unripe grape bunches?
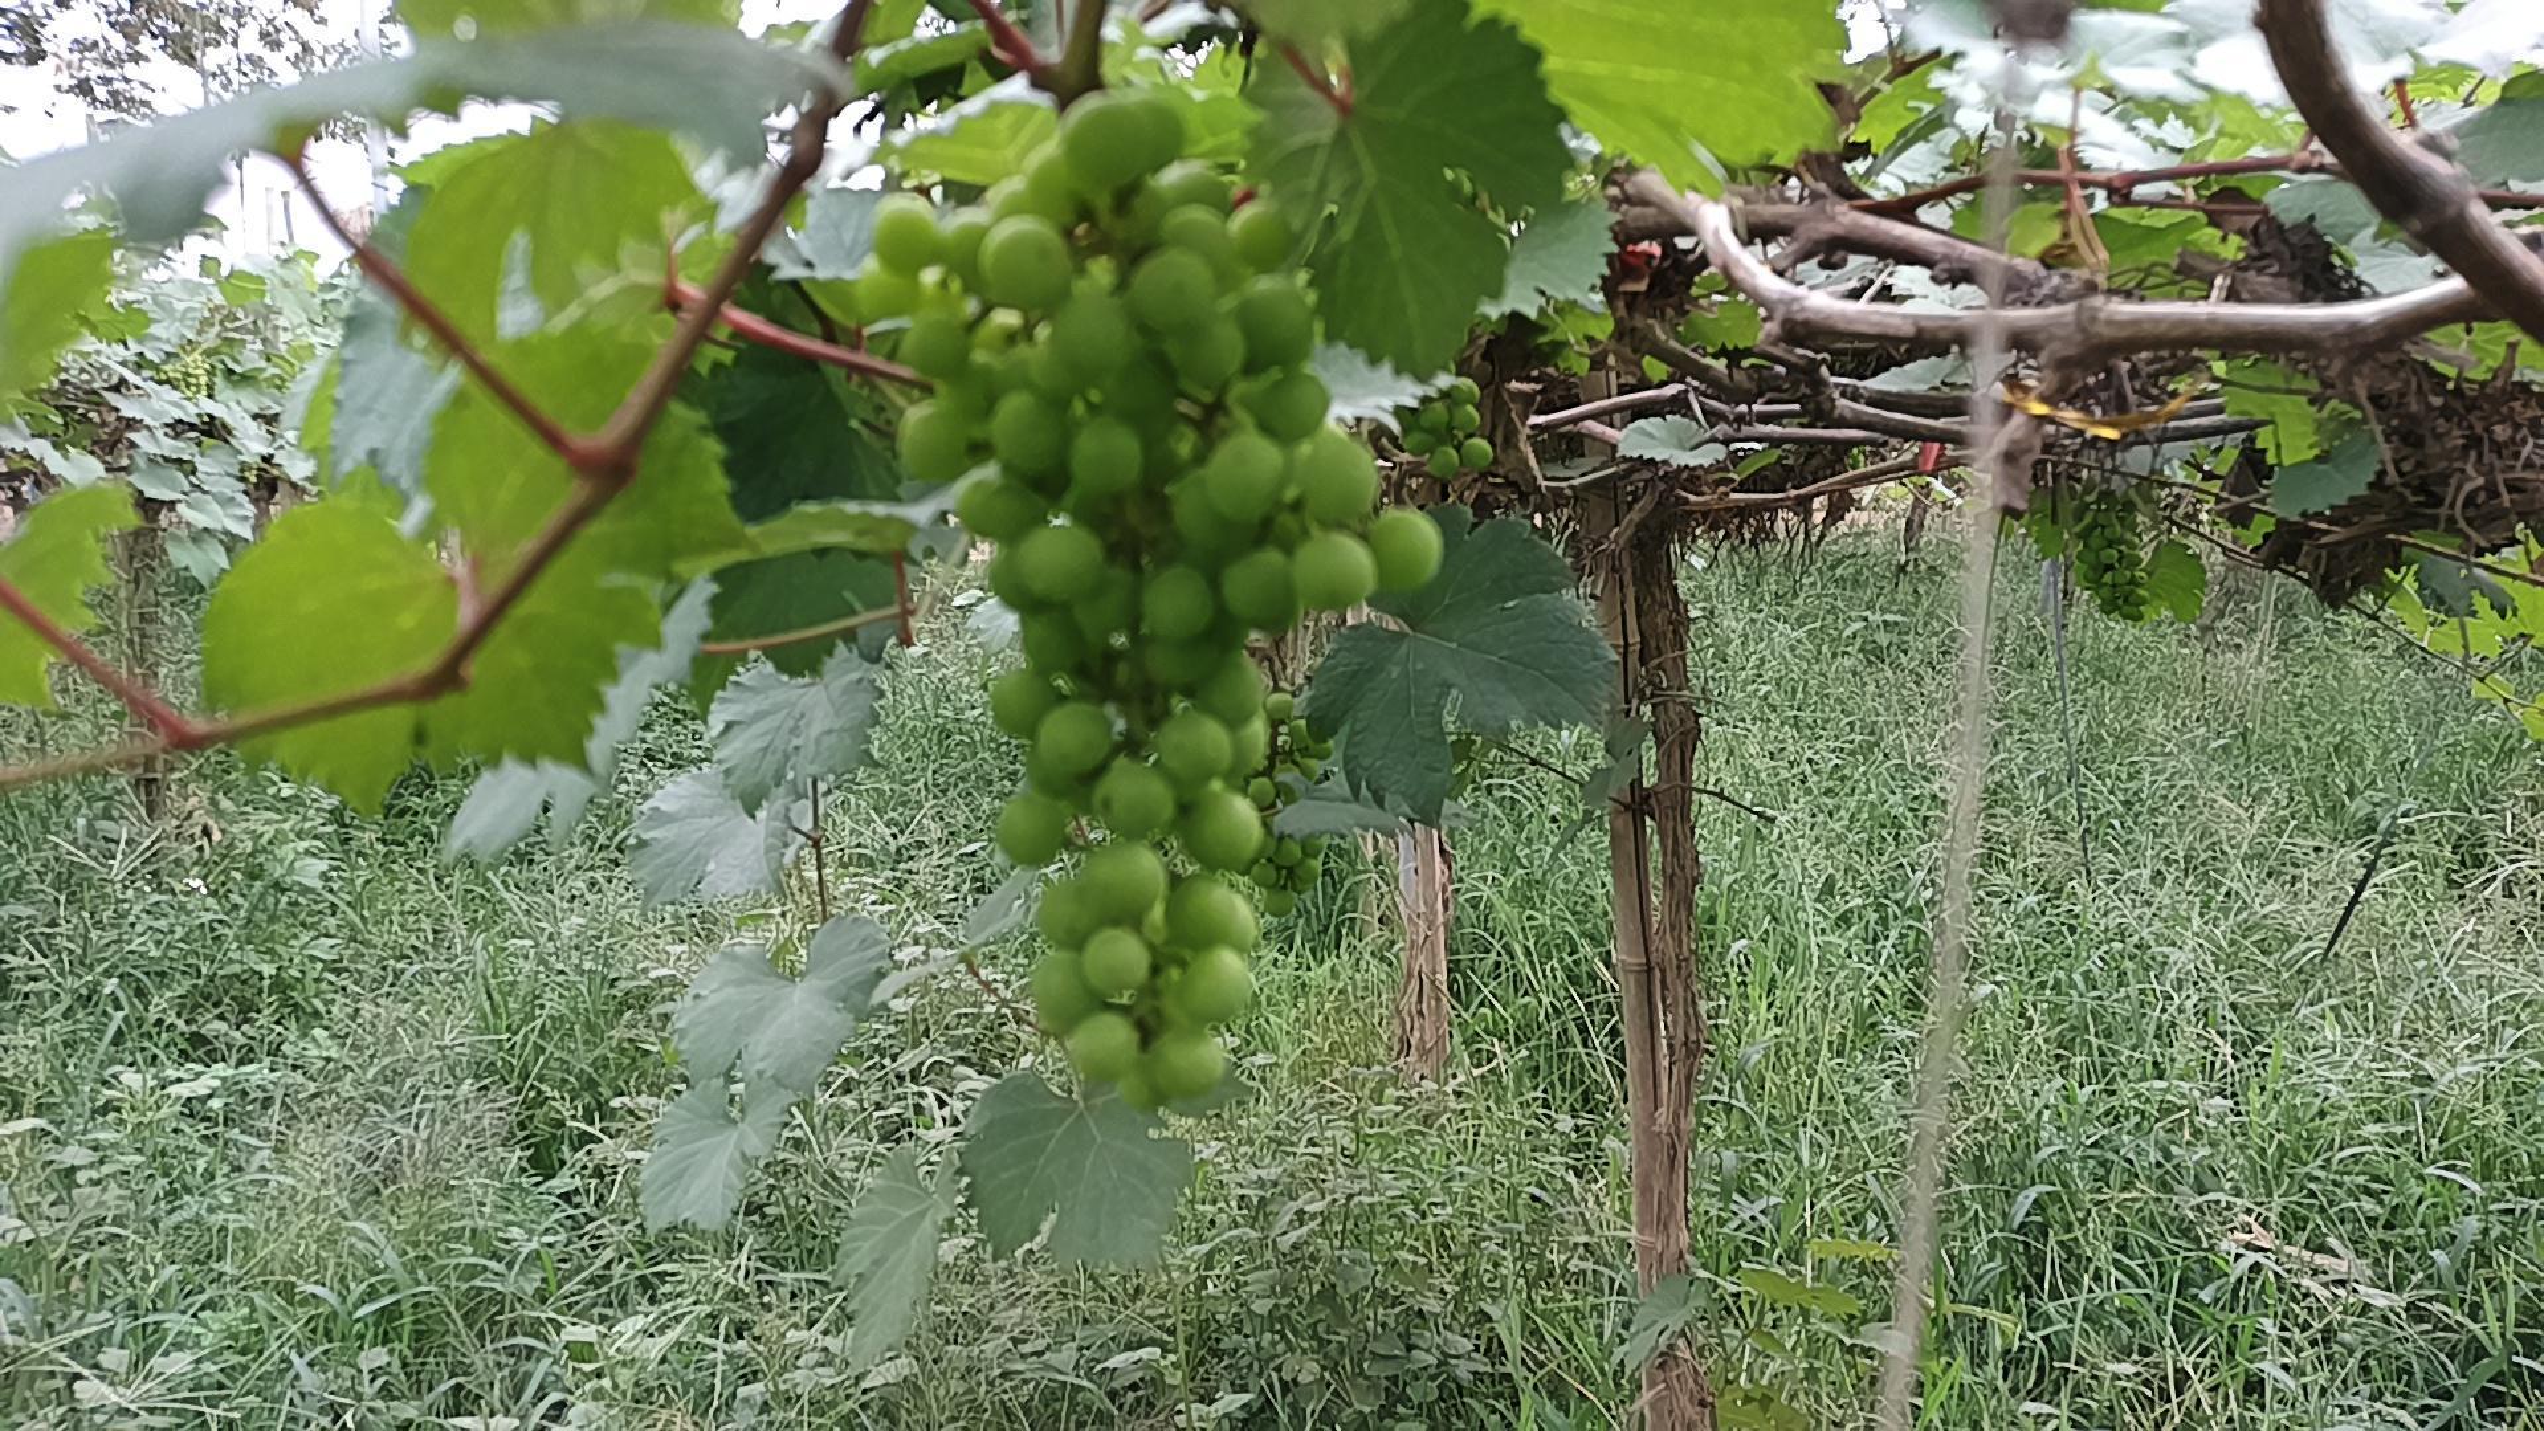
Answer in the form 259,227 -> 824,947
859,87 -> 1443,1109
2071,477 -> 2146,621
1248,693 -> 1334,917
1401,379 -> 1492,480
